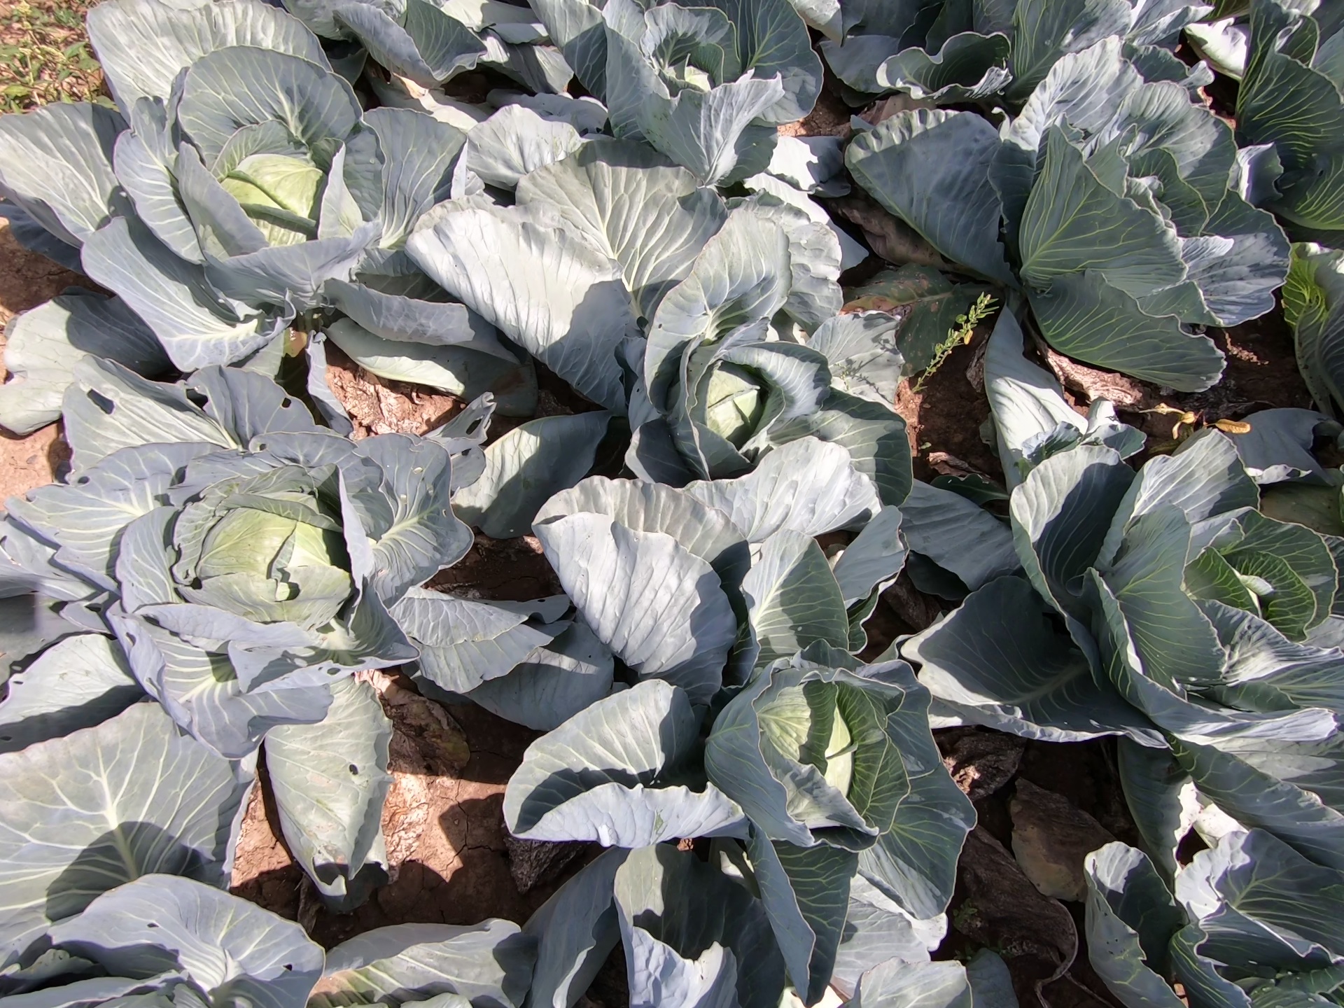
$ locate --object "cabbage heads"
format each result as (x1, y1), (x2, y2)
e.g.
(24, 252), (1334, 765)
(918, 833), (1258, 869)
(678, 362), (769, 458)
(206, 151), (361, 294)
(1127, 553), (1266, 662)
(717, 678), (859, 832)
(640, 66), (720, 148)
(195, 489), (358, 633)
